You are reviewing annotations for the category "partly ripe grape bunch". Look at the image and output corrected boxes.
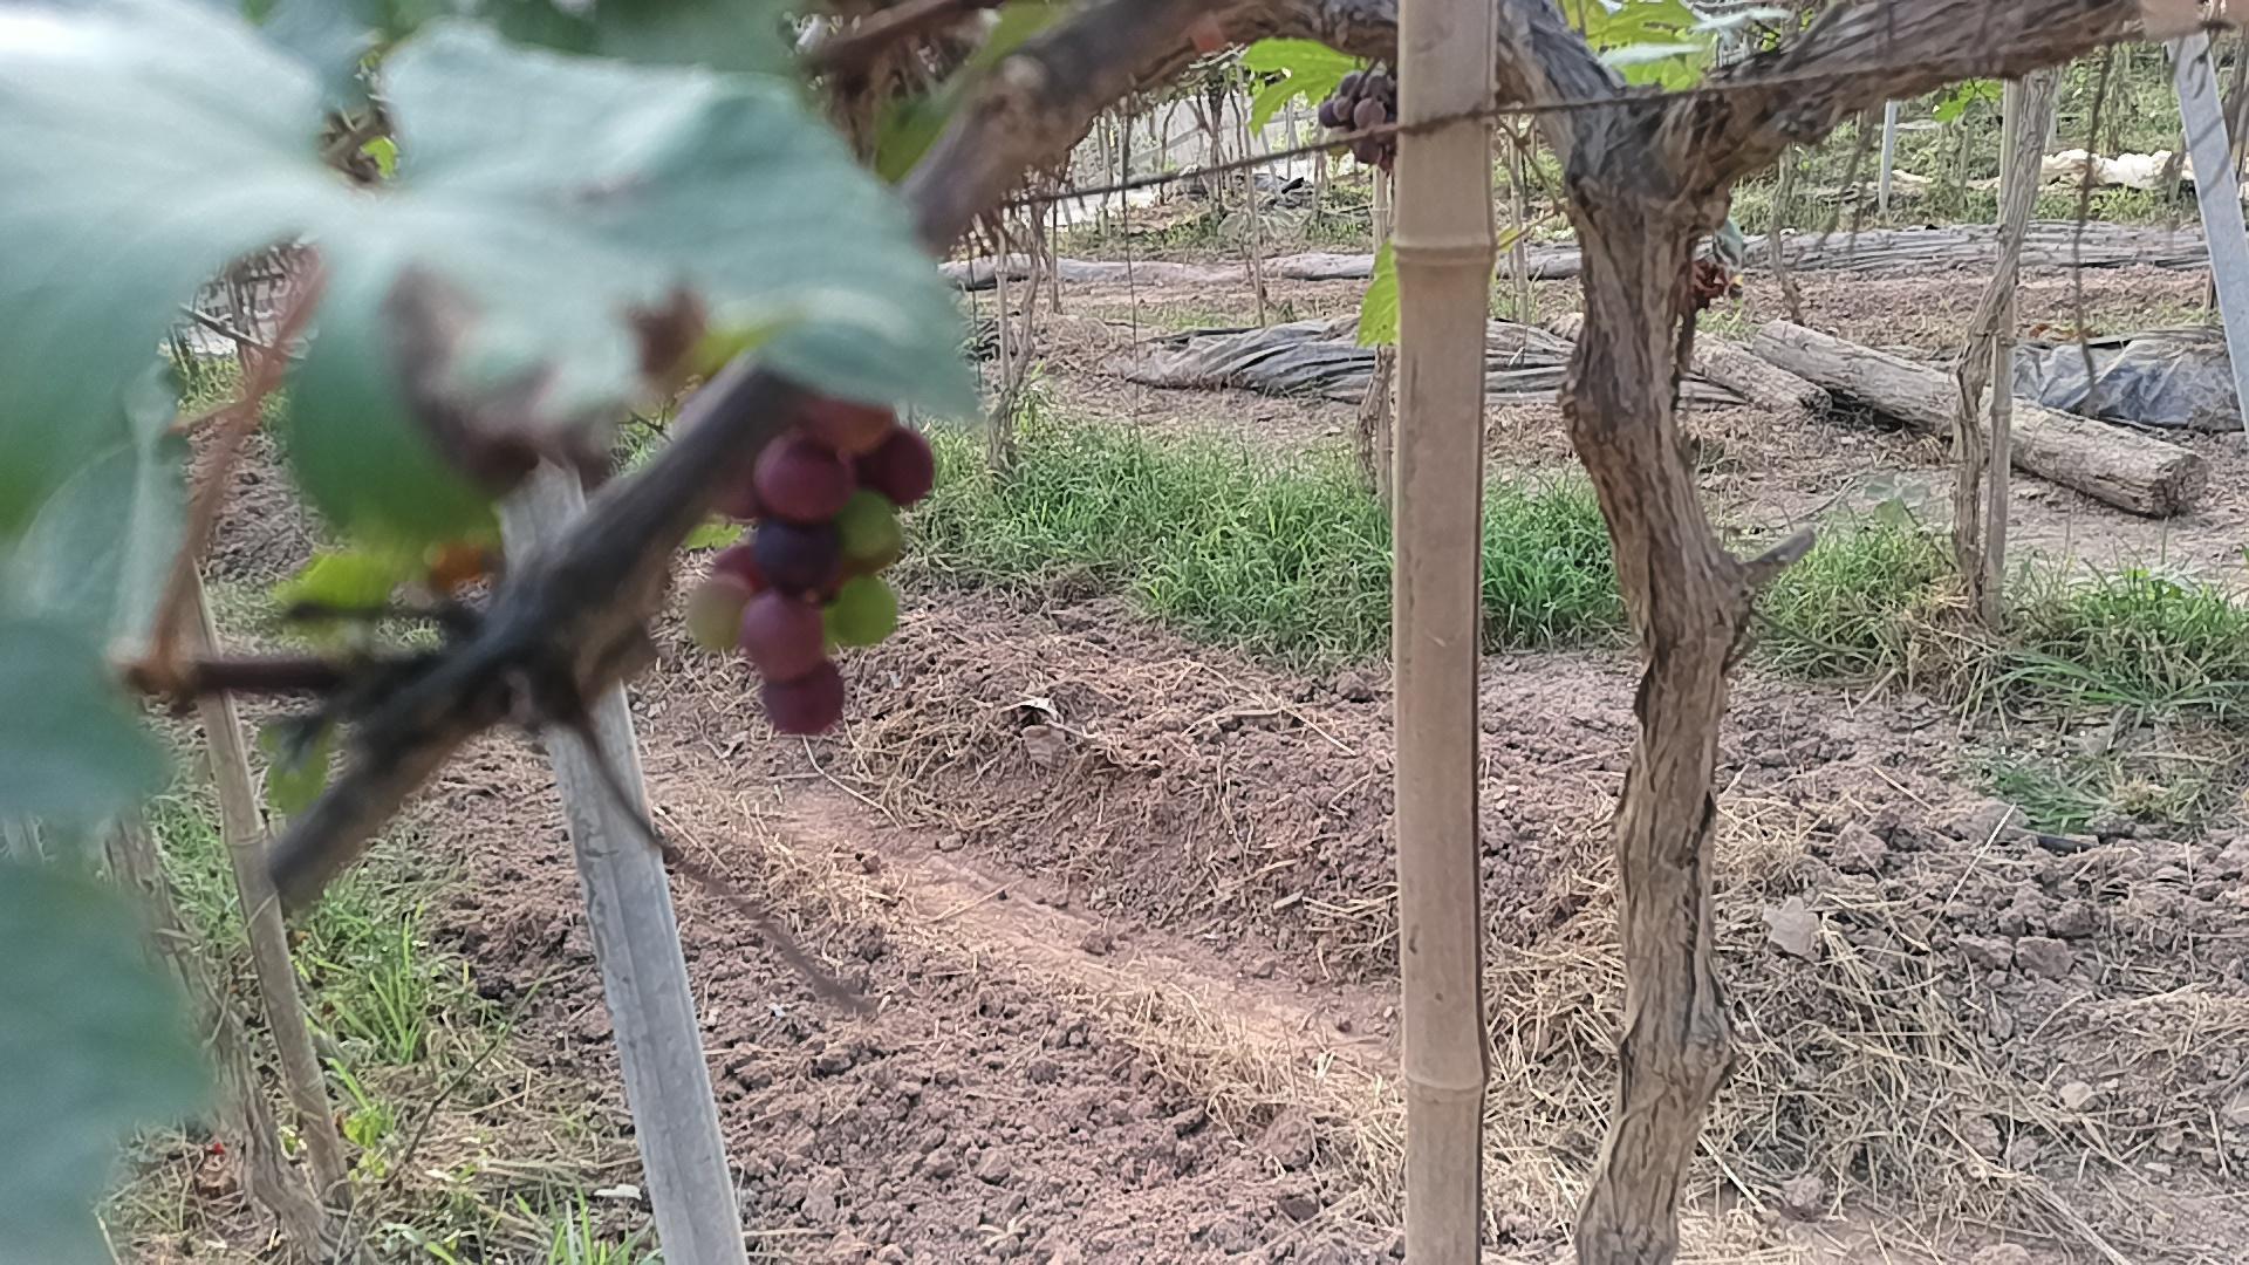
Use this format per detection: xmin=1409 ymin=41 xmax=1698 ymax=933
xmin=688 ymin=399 xmax=934 ymax=734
